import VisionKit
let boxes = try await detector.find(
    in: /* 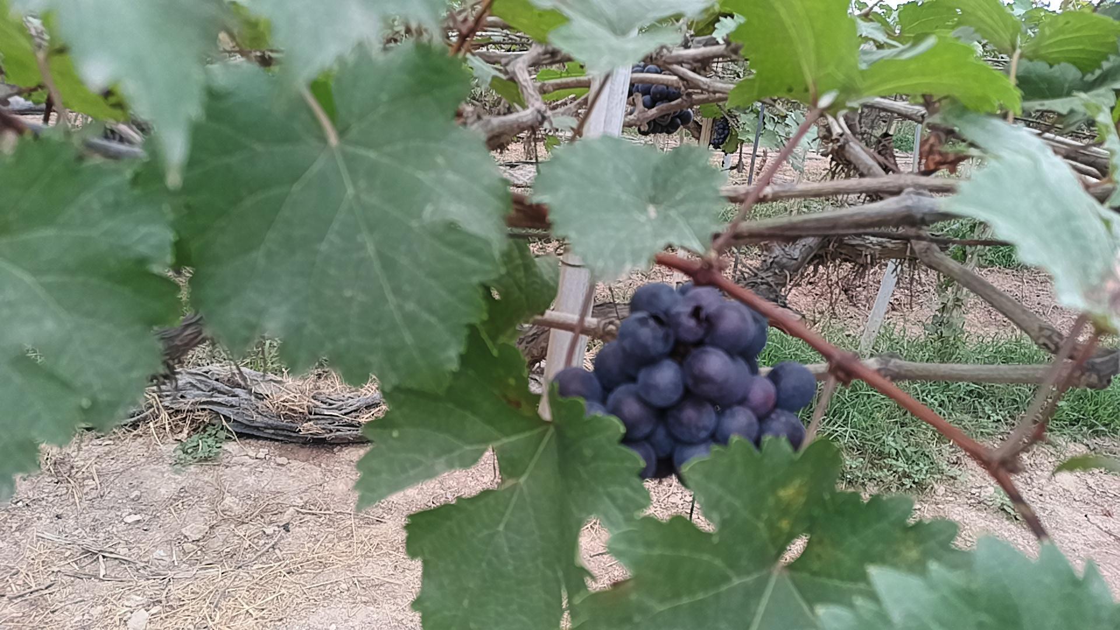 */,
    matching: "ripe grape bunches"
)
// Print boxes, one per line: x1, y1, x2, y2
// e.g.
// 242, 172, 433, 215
626, 61, 693, 135
555, 283, 815, 478
708, 114, 730, 150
